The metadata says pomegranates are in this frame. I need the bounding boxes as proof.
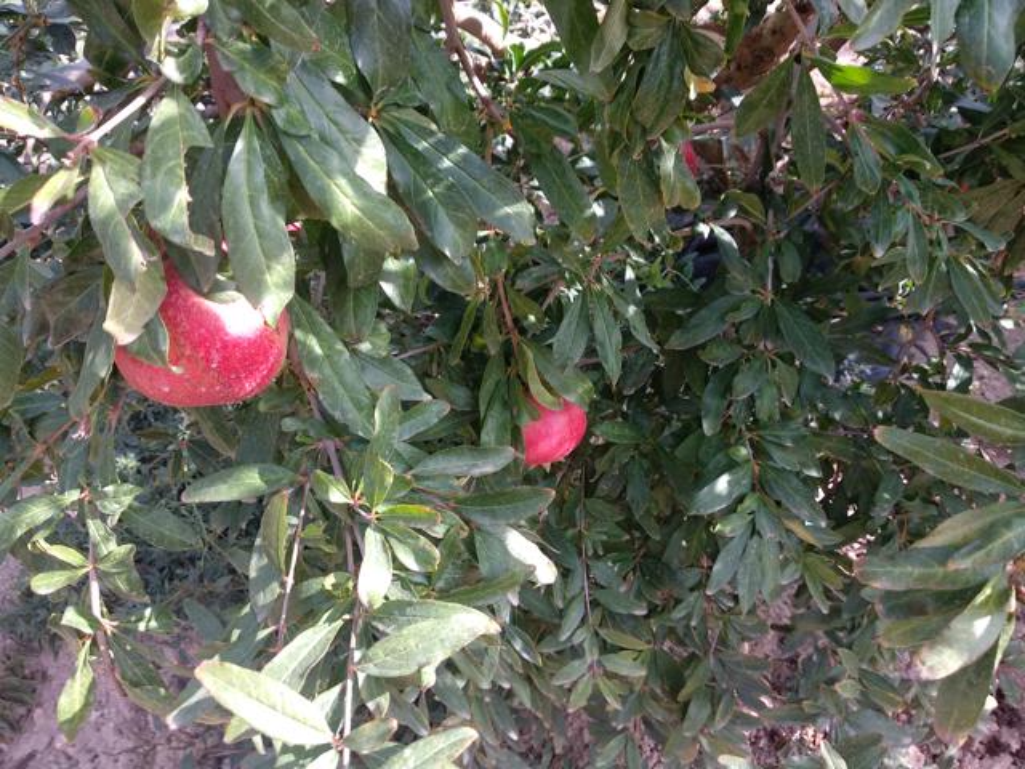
[522,396,588,474]
[114,256,290,409]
